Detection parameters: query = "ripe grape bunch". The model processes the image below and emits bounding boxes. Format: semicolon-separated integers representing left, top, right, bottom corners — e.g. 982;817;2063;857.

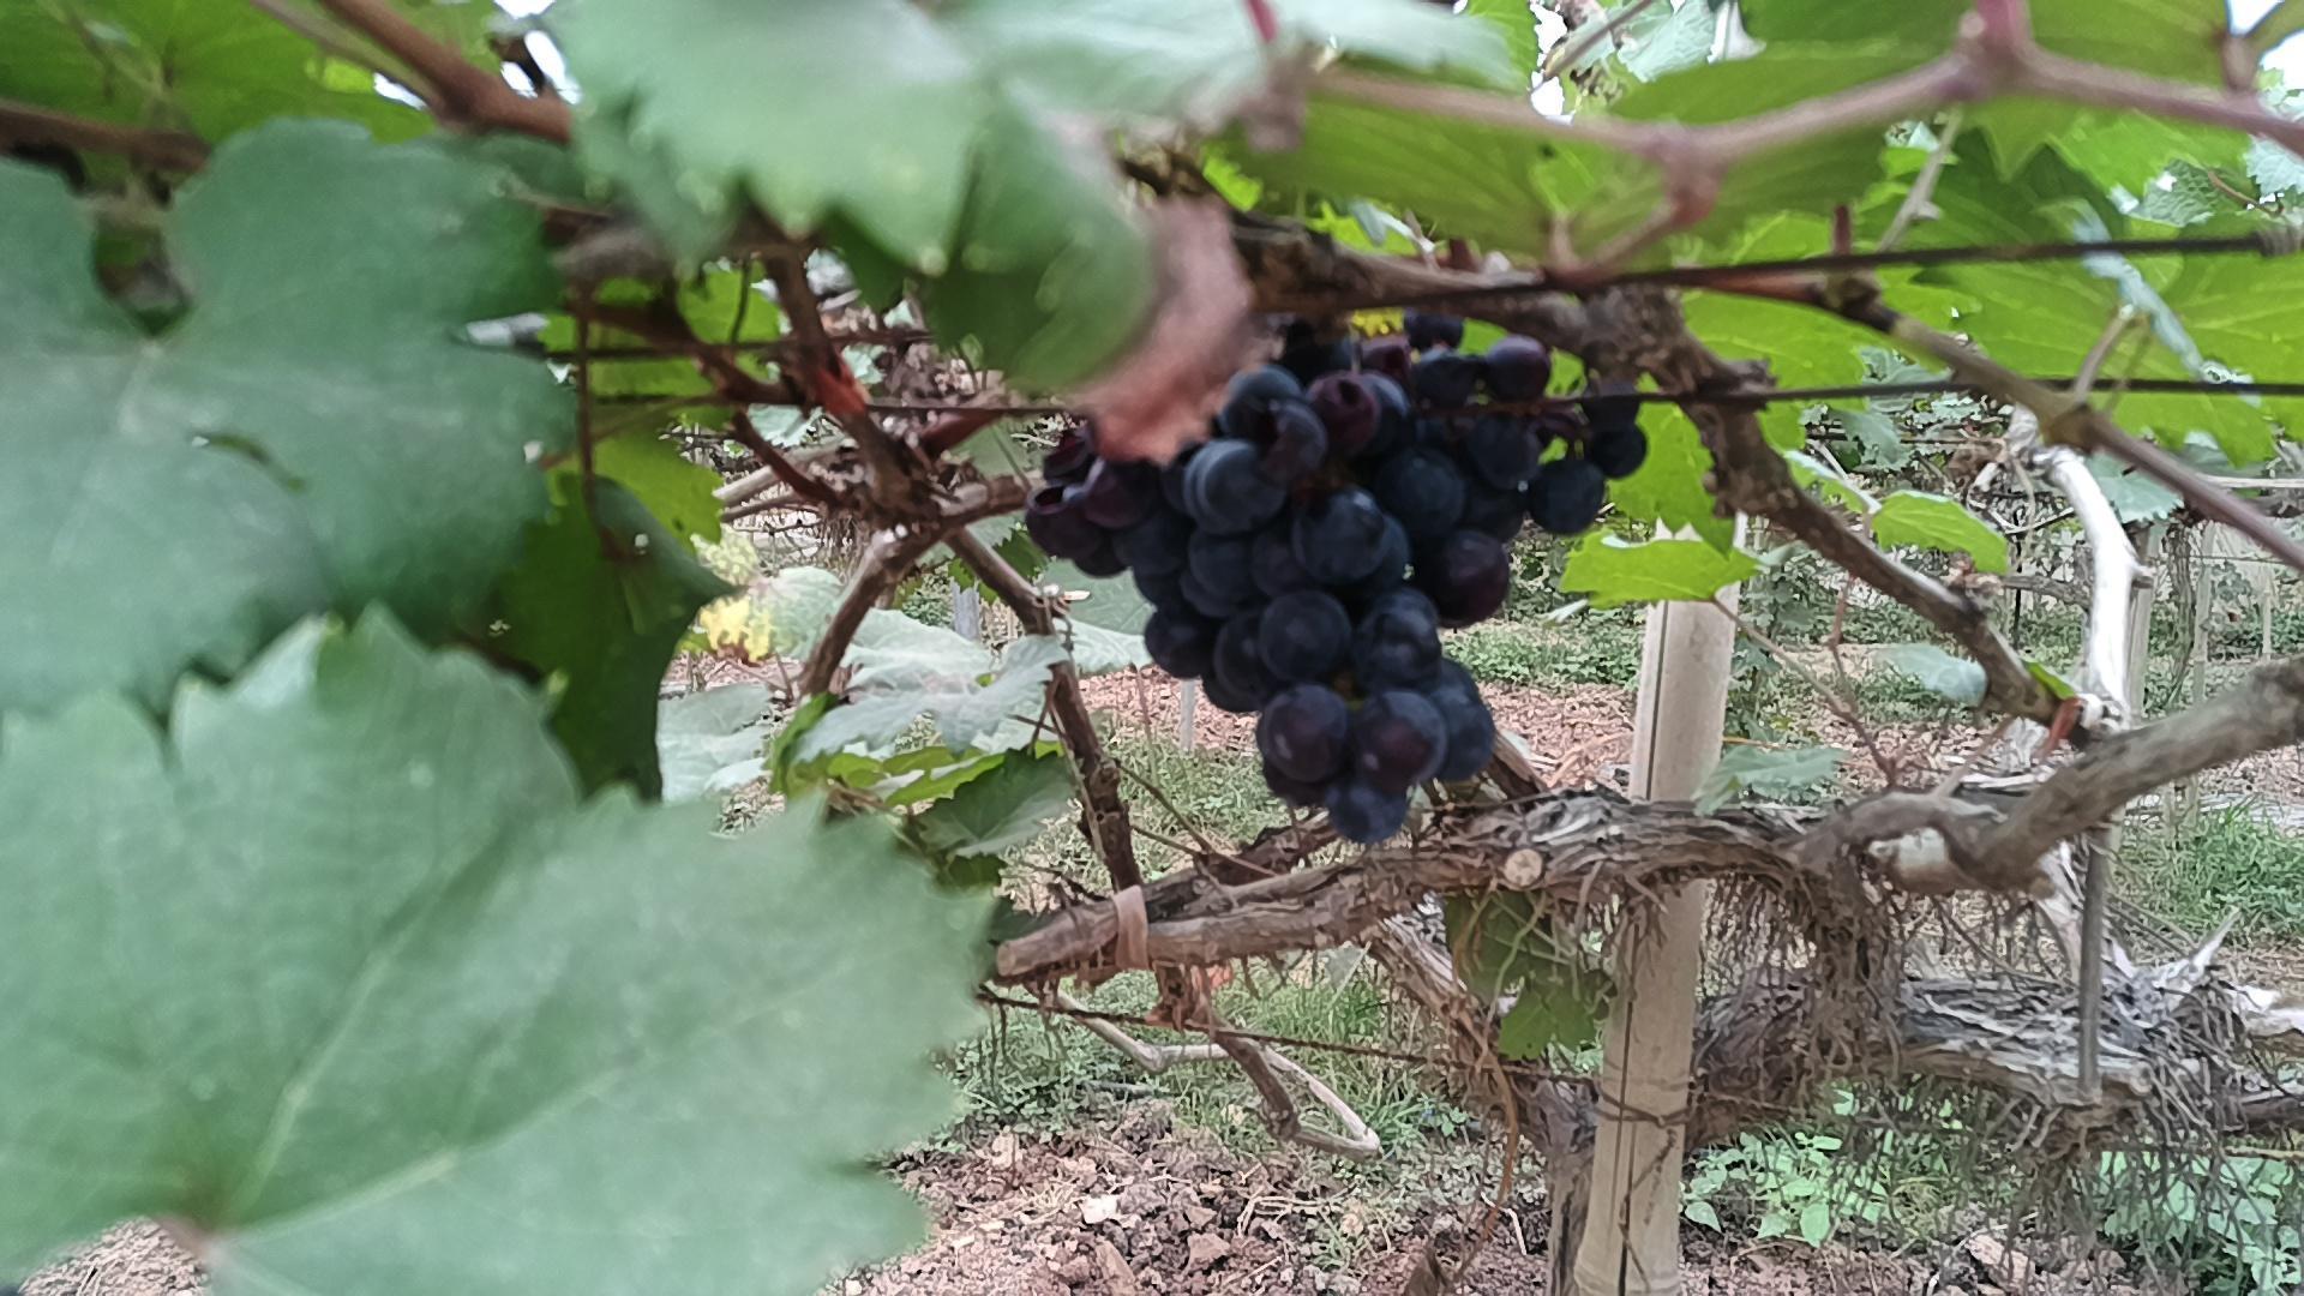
1026;314;1645;842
